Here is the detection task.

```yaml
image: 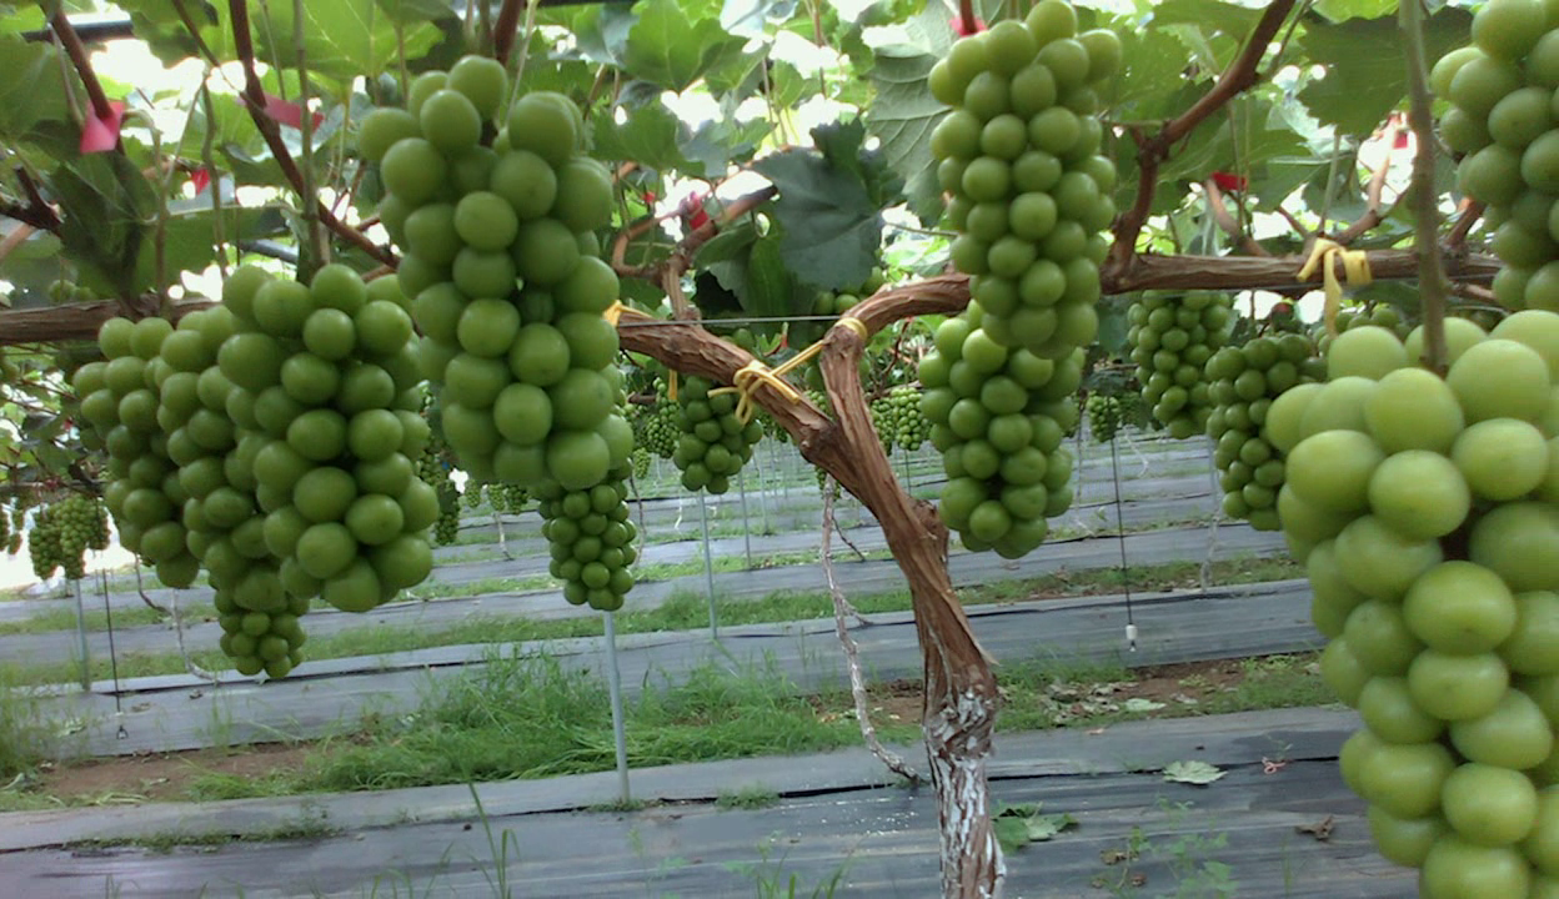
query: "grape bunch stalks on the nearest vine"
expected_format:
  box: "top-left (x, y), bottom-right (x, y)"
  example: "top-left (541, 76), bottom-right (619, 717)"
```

top-left (1008, 1), bottom-right (1018, 16)
top-left (129, 109), bottom-right (169, 313)
top-left (476, 1), bottom-right (496, 56)
top-left (201, 84), bottom-right (227, 276)
top-left (1397, 1), bottom-right (1449, 375)
top-left (294, 1), bottom-right (324, 268)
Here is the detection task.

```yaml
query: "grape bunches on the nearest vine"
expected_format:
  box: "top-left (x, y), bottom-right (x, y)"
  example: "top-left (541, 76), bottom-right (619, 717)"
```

top-left (1264, 308), bottom-right (1558, 898)
top-left (219, 263), bottom-right (441, 614)
top-left (152, 306), bottom-right (289, 614)
top-left (357, 55), bottom-right (631, 486)
top-left (75, 316), bottom-right (197, 589)
top-left (927, 0), bottom-right (1123, 358)
top-left (918, 301), bottom-right (1082, 558)
top-left (1432, 0), bottom-right (1558, 308)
